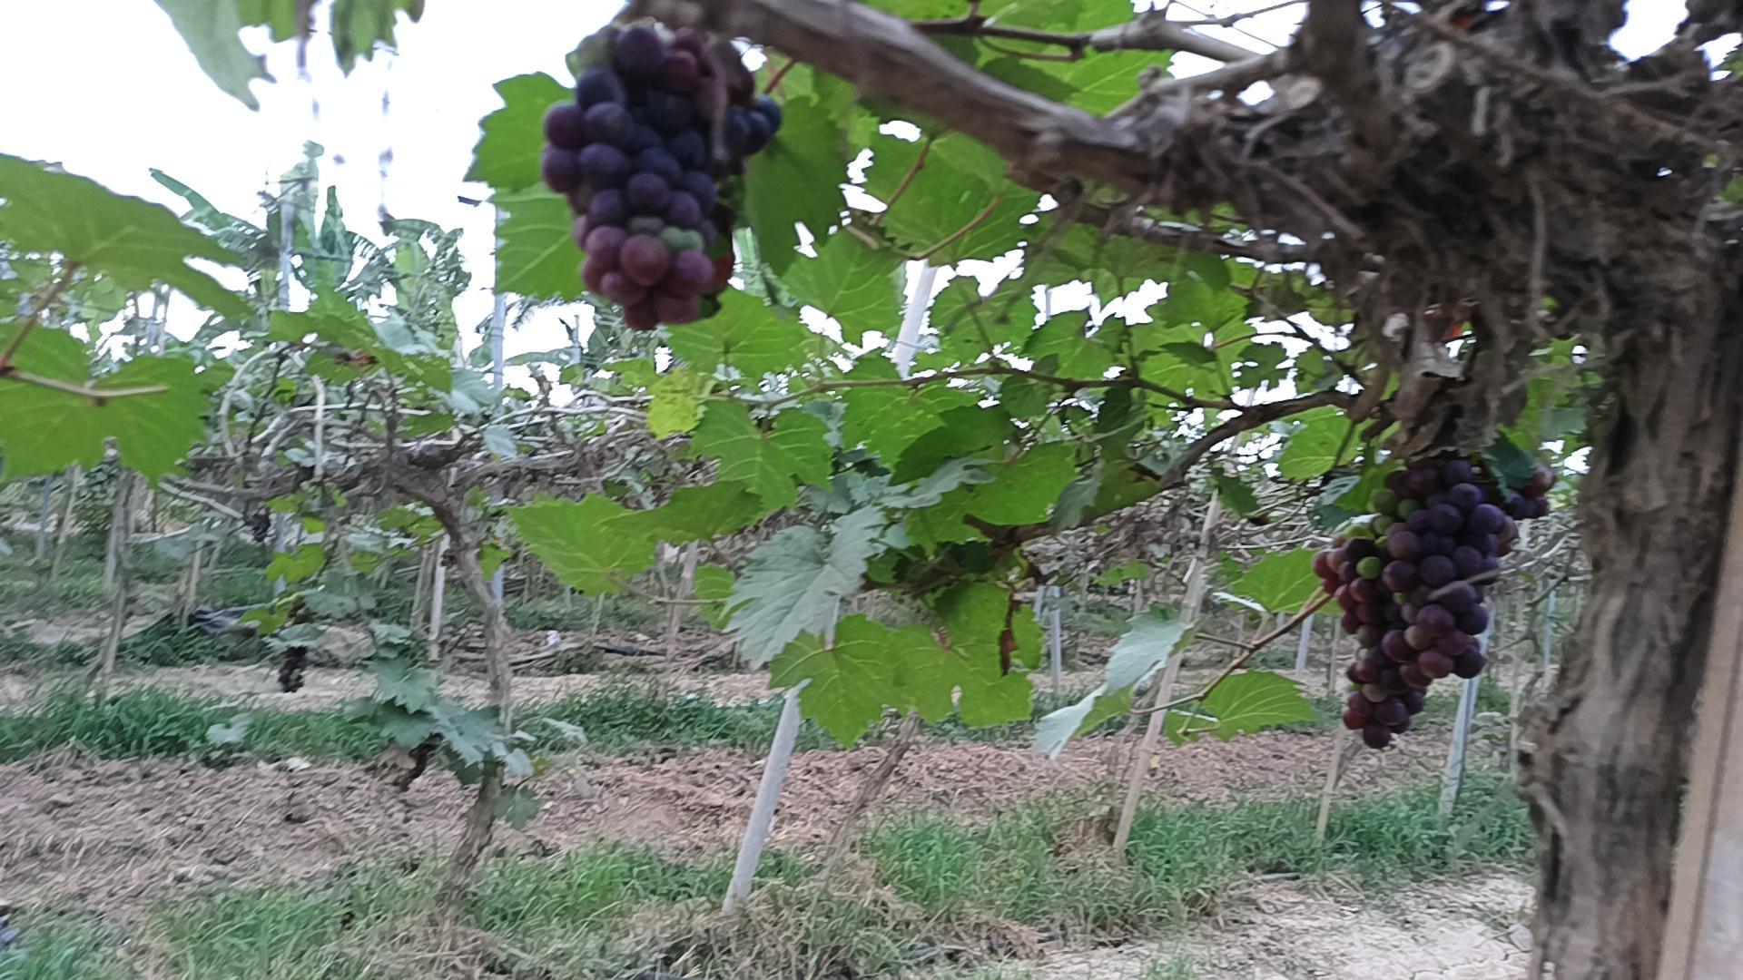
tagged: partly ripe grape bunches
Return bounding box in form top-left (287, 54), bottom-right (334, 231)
top-left (542, 19), bottom-right (782, 329)
top-left (1315, 457), bottom-right (1552, 748)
